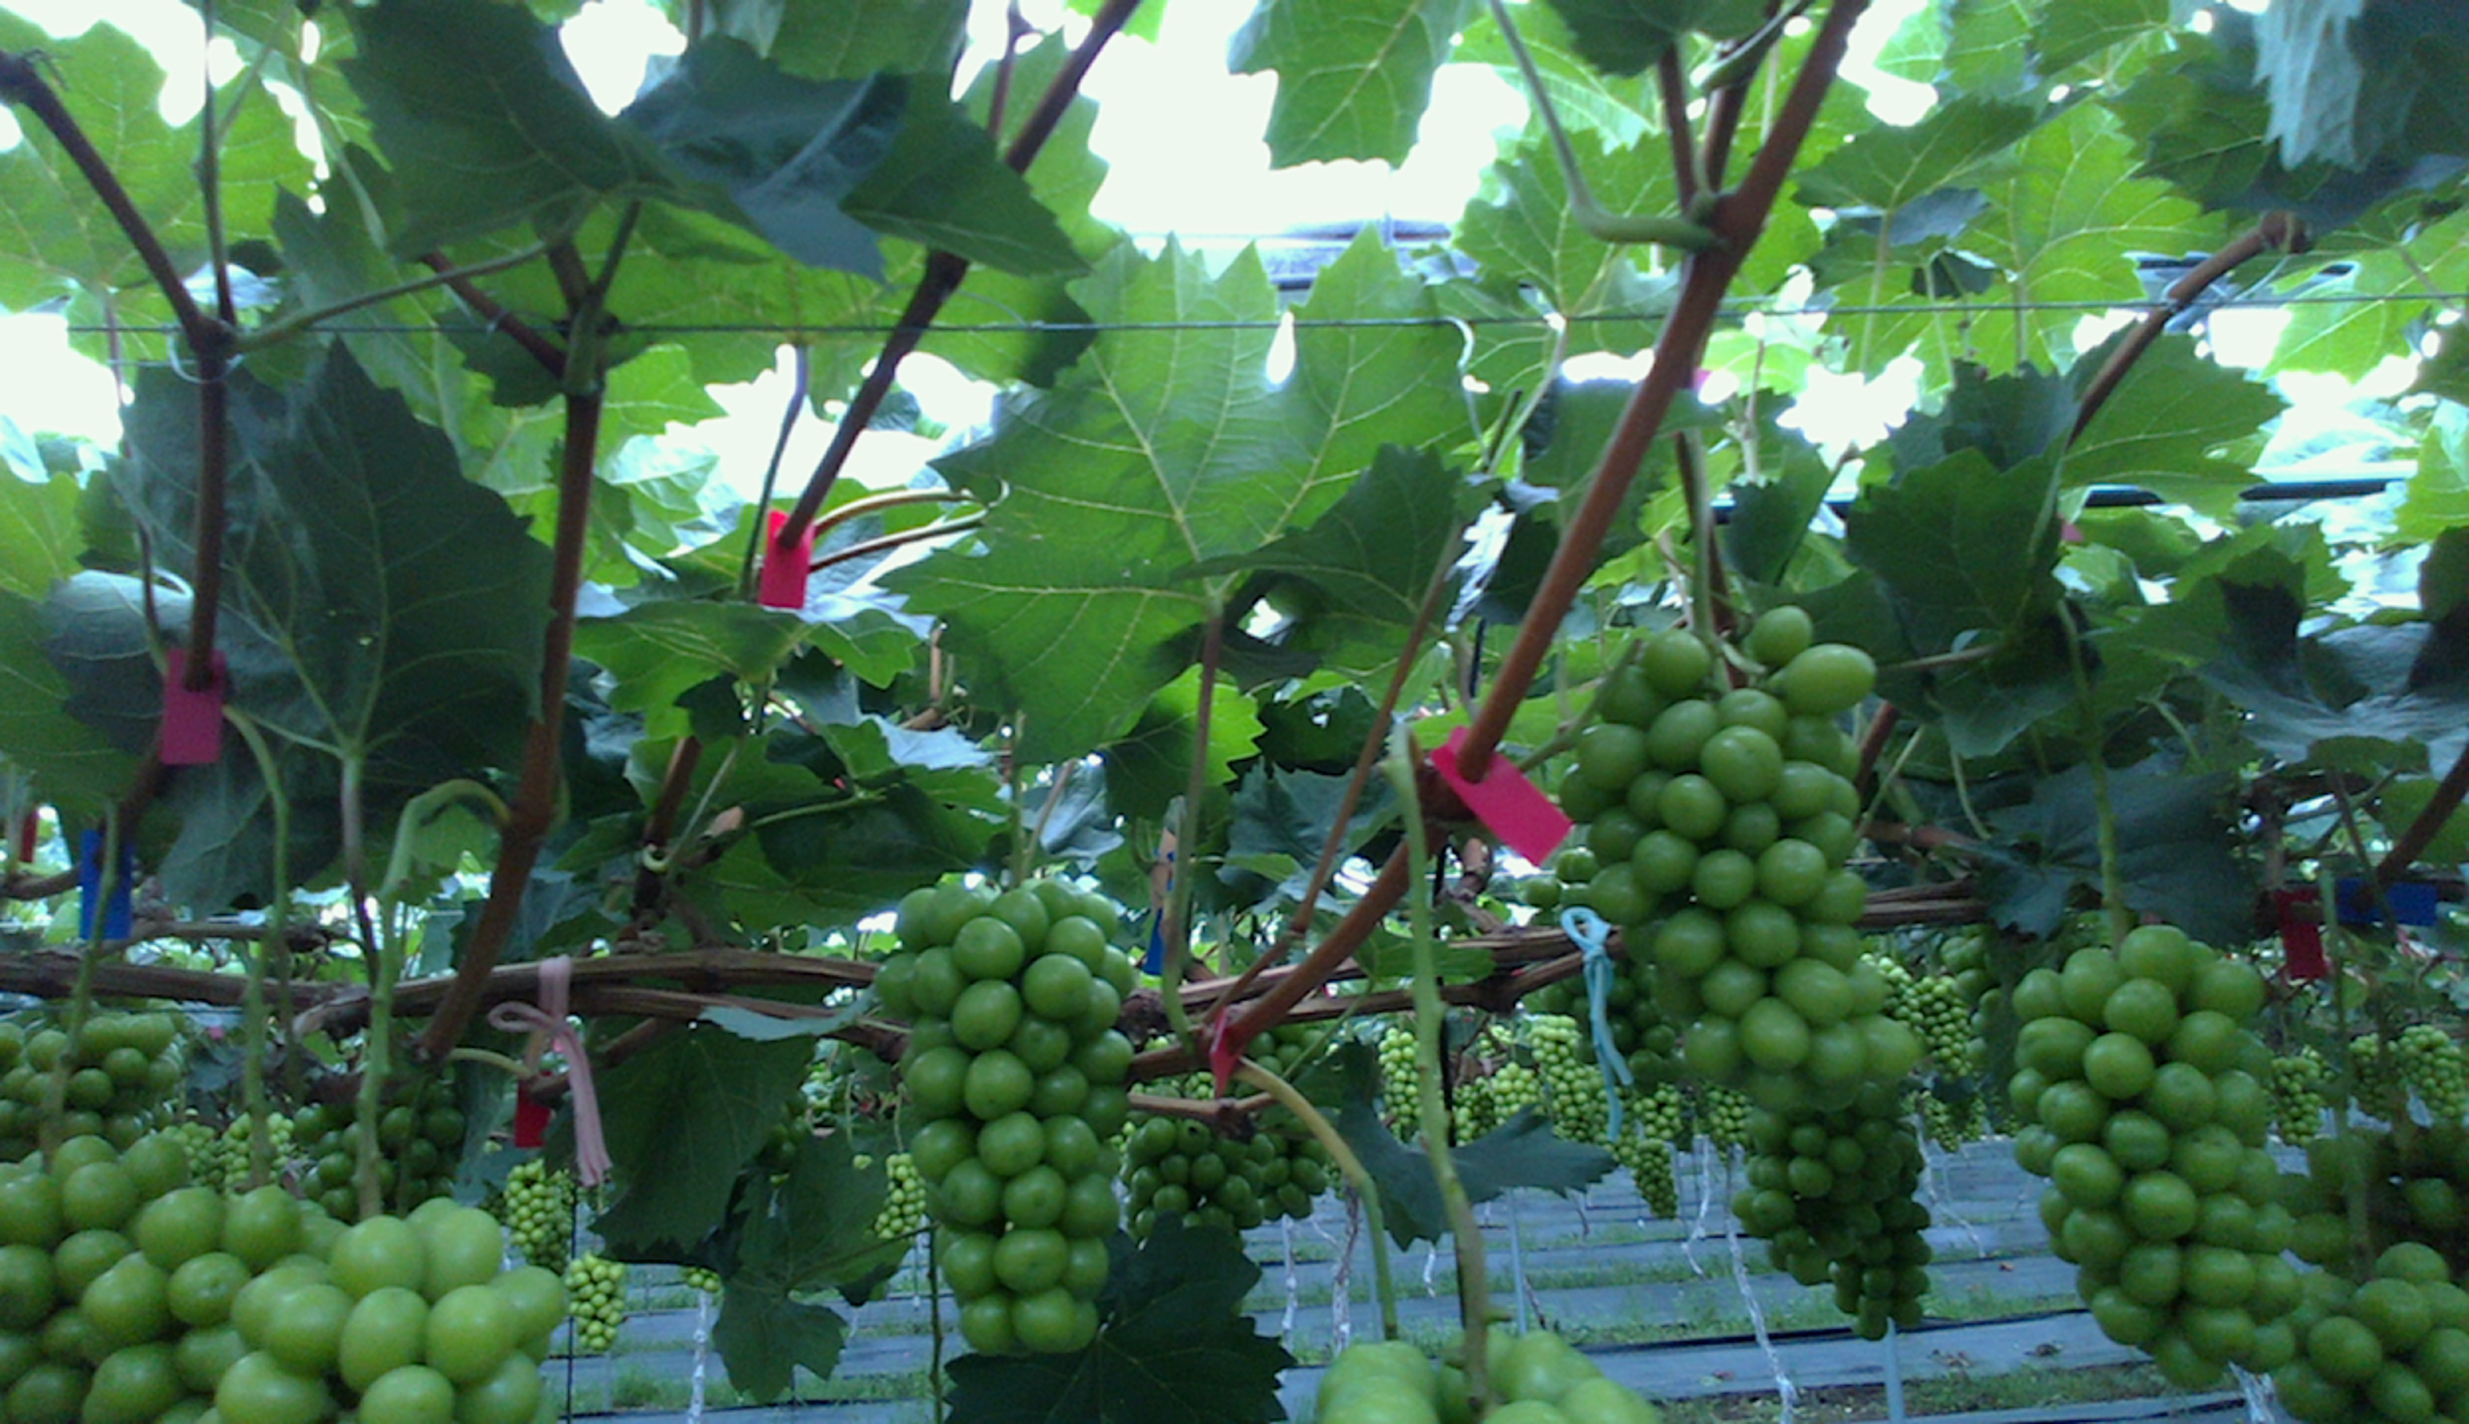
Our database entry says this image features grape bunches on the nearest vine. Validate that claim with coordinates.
[874,876,1134,1357]
[2275,1244,2467,1422]
[218,1197,562,1422]
[2008,922,2297,1394]
[0,1131,184,1422]
[1559,603,1921,1121]
[73,1187,346,1422]
[1312,1333,1660,1422]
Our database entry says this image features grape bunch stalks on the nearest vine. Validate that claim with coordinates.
[229,710,293,1181]
[358,779,503,1218]
[1680,433,1731,686]
[2319,878,2372,1280]
[42,801,117,1151]
[1387,722,1511,1410]
[1007,767,1025,884]
[2054,609,2127,941]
